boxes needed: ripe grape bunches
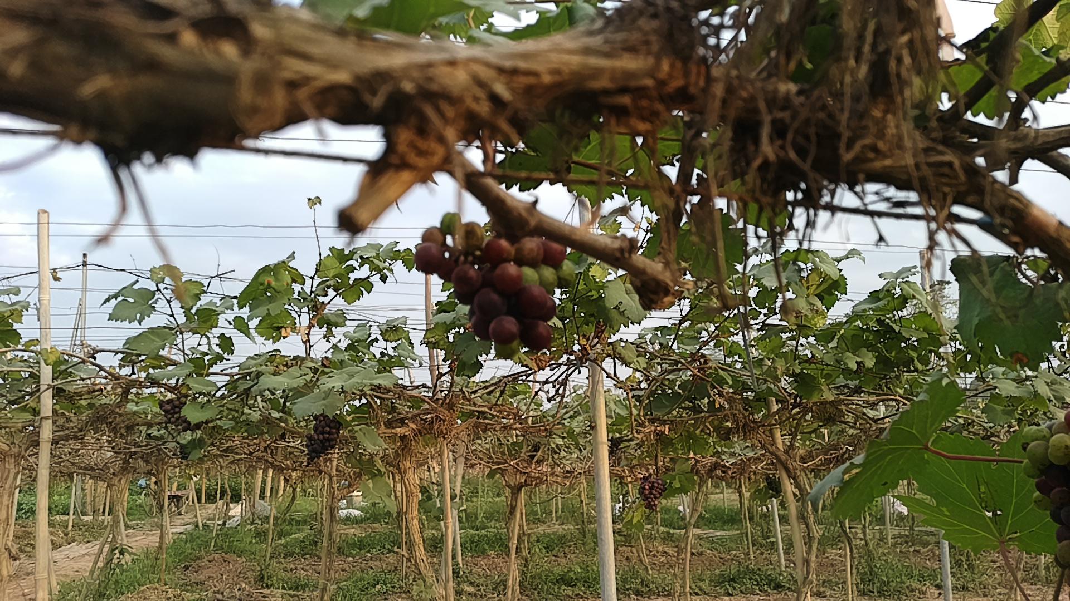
[638,472,669,515]
[307,413,343,463]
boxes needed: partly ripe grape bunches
[1023,412,1069,600]
[159,392,203,432]
[414,212,579,358]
